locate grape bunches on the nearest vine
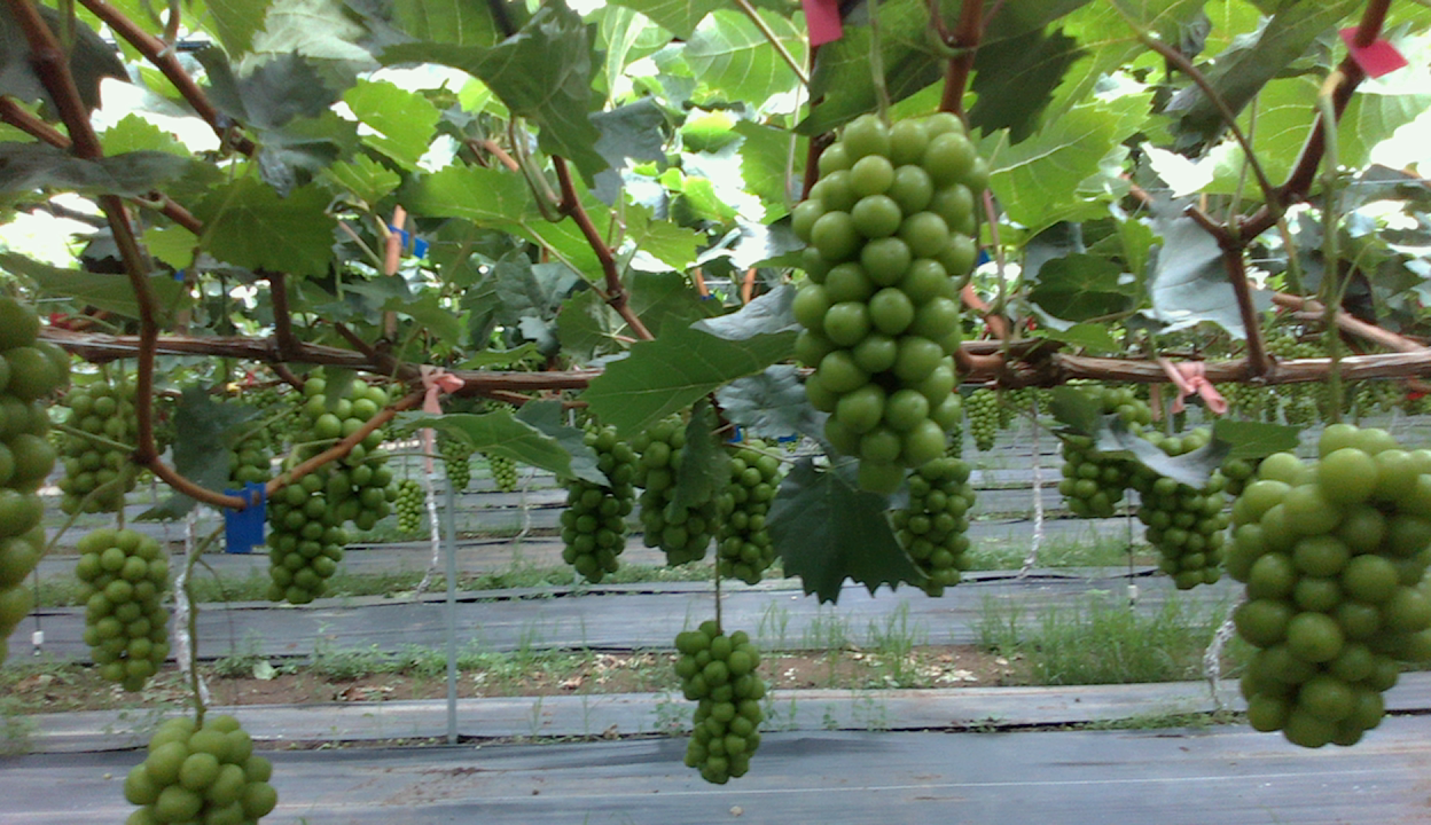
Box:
[1228,422,1430,748]
[0,294,72,623]
[792,113,990,498]
[124,715,276,824]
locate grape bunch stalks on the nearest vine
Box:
[1319,69,1346,424]
[870,18,892,125]
[185,522,226,731]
